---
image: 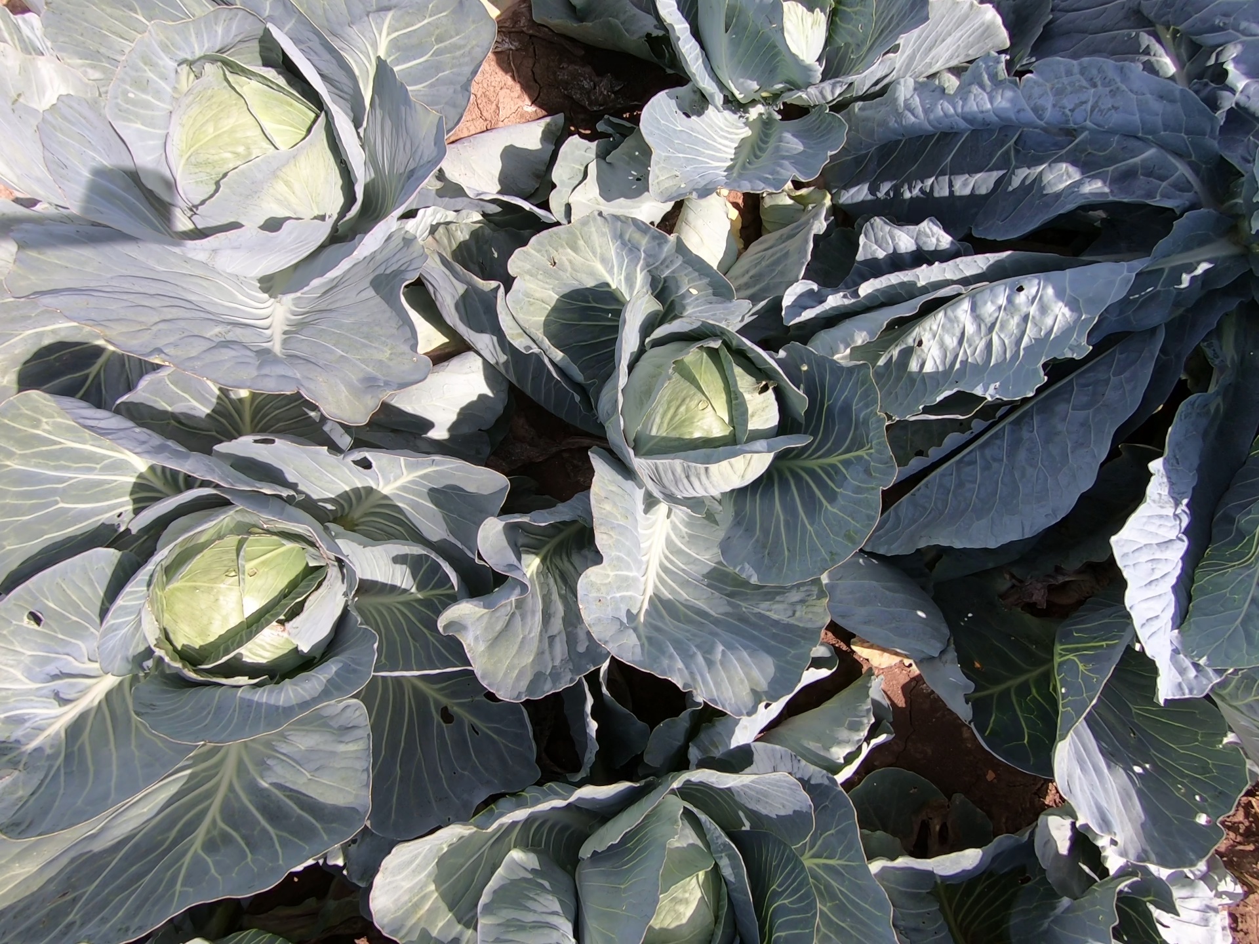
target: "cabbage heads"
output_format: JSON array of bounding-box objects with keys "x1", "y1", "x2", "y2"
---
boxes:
[
  {"x1": 159, "y1": 59, "x2": 357, "y2": 256},
  {"x1": 610, "y1": 342, "x2": 774, "y2": 498},
  {"x1": 153, "y1": 505, "x2": 348, "y2": 681},
  {"x1": 580, "y1": 802, "x2": 736, "y2": 942}
]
